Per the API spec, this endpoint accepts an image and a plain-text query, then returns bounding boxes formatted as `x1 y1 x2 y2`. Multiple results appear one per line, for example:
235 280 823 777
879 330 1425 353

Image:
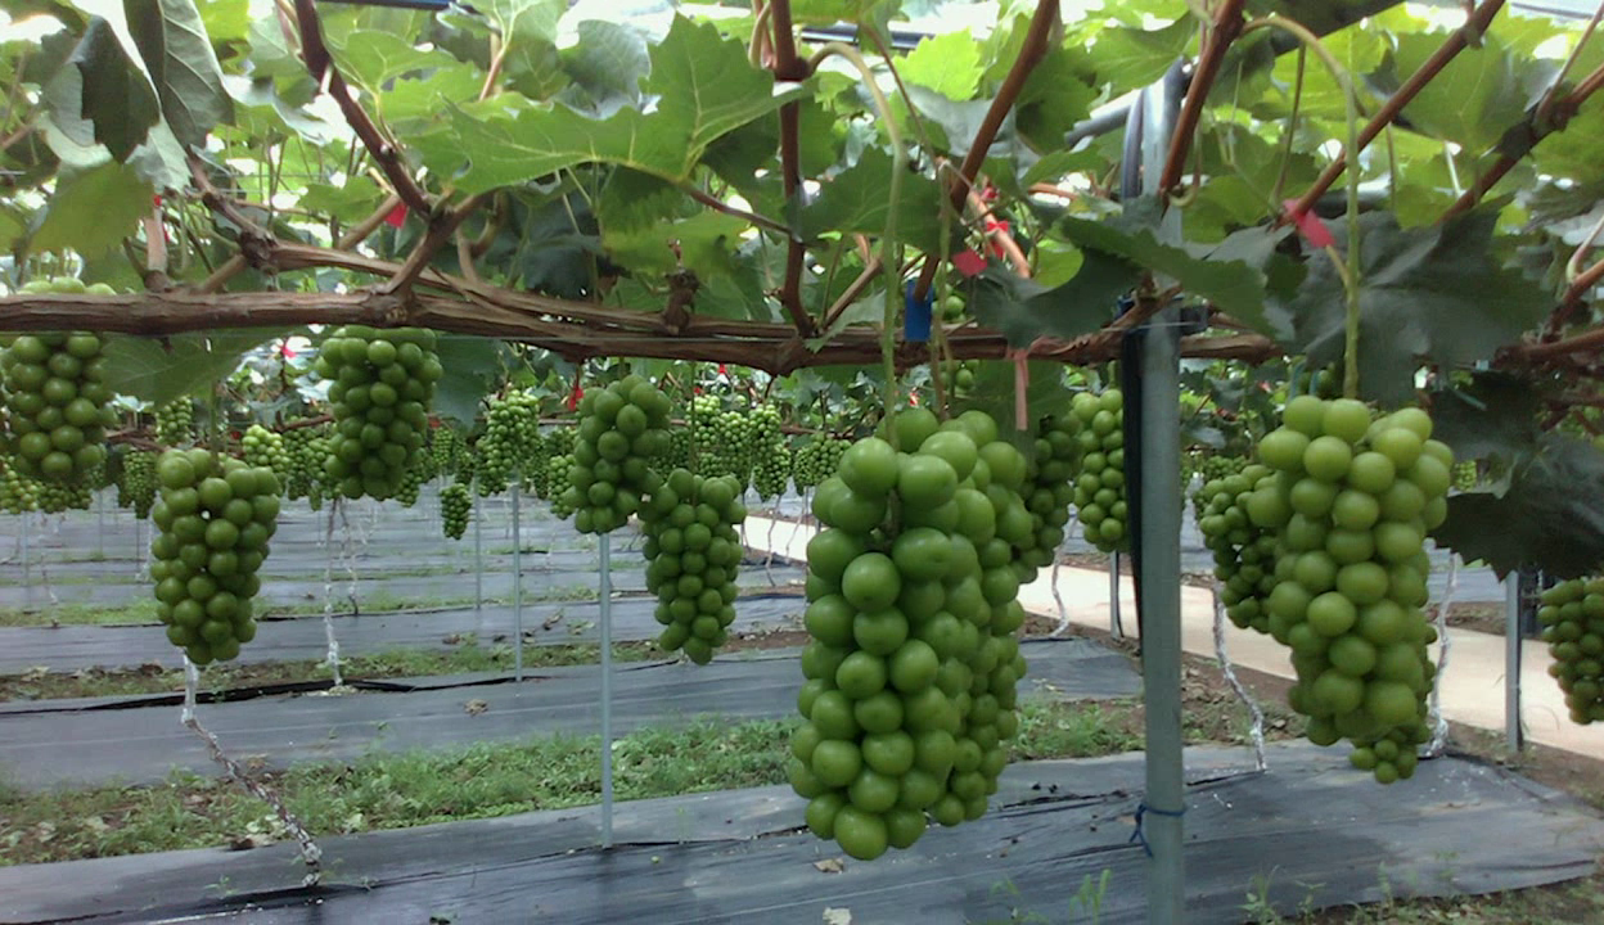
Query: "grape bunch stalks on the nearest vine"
810 42 910 447
1257 19 1359 397
931 166 950 418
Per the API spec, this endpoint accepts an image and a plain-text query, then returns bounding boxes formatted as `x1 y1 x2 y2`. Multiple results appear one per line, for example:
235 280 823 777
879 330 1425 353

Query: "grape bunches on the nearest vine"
931 411 1035 829
787 406 994 865
1245 393 1452 748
